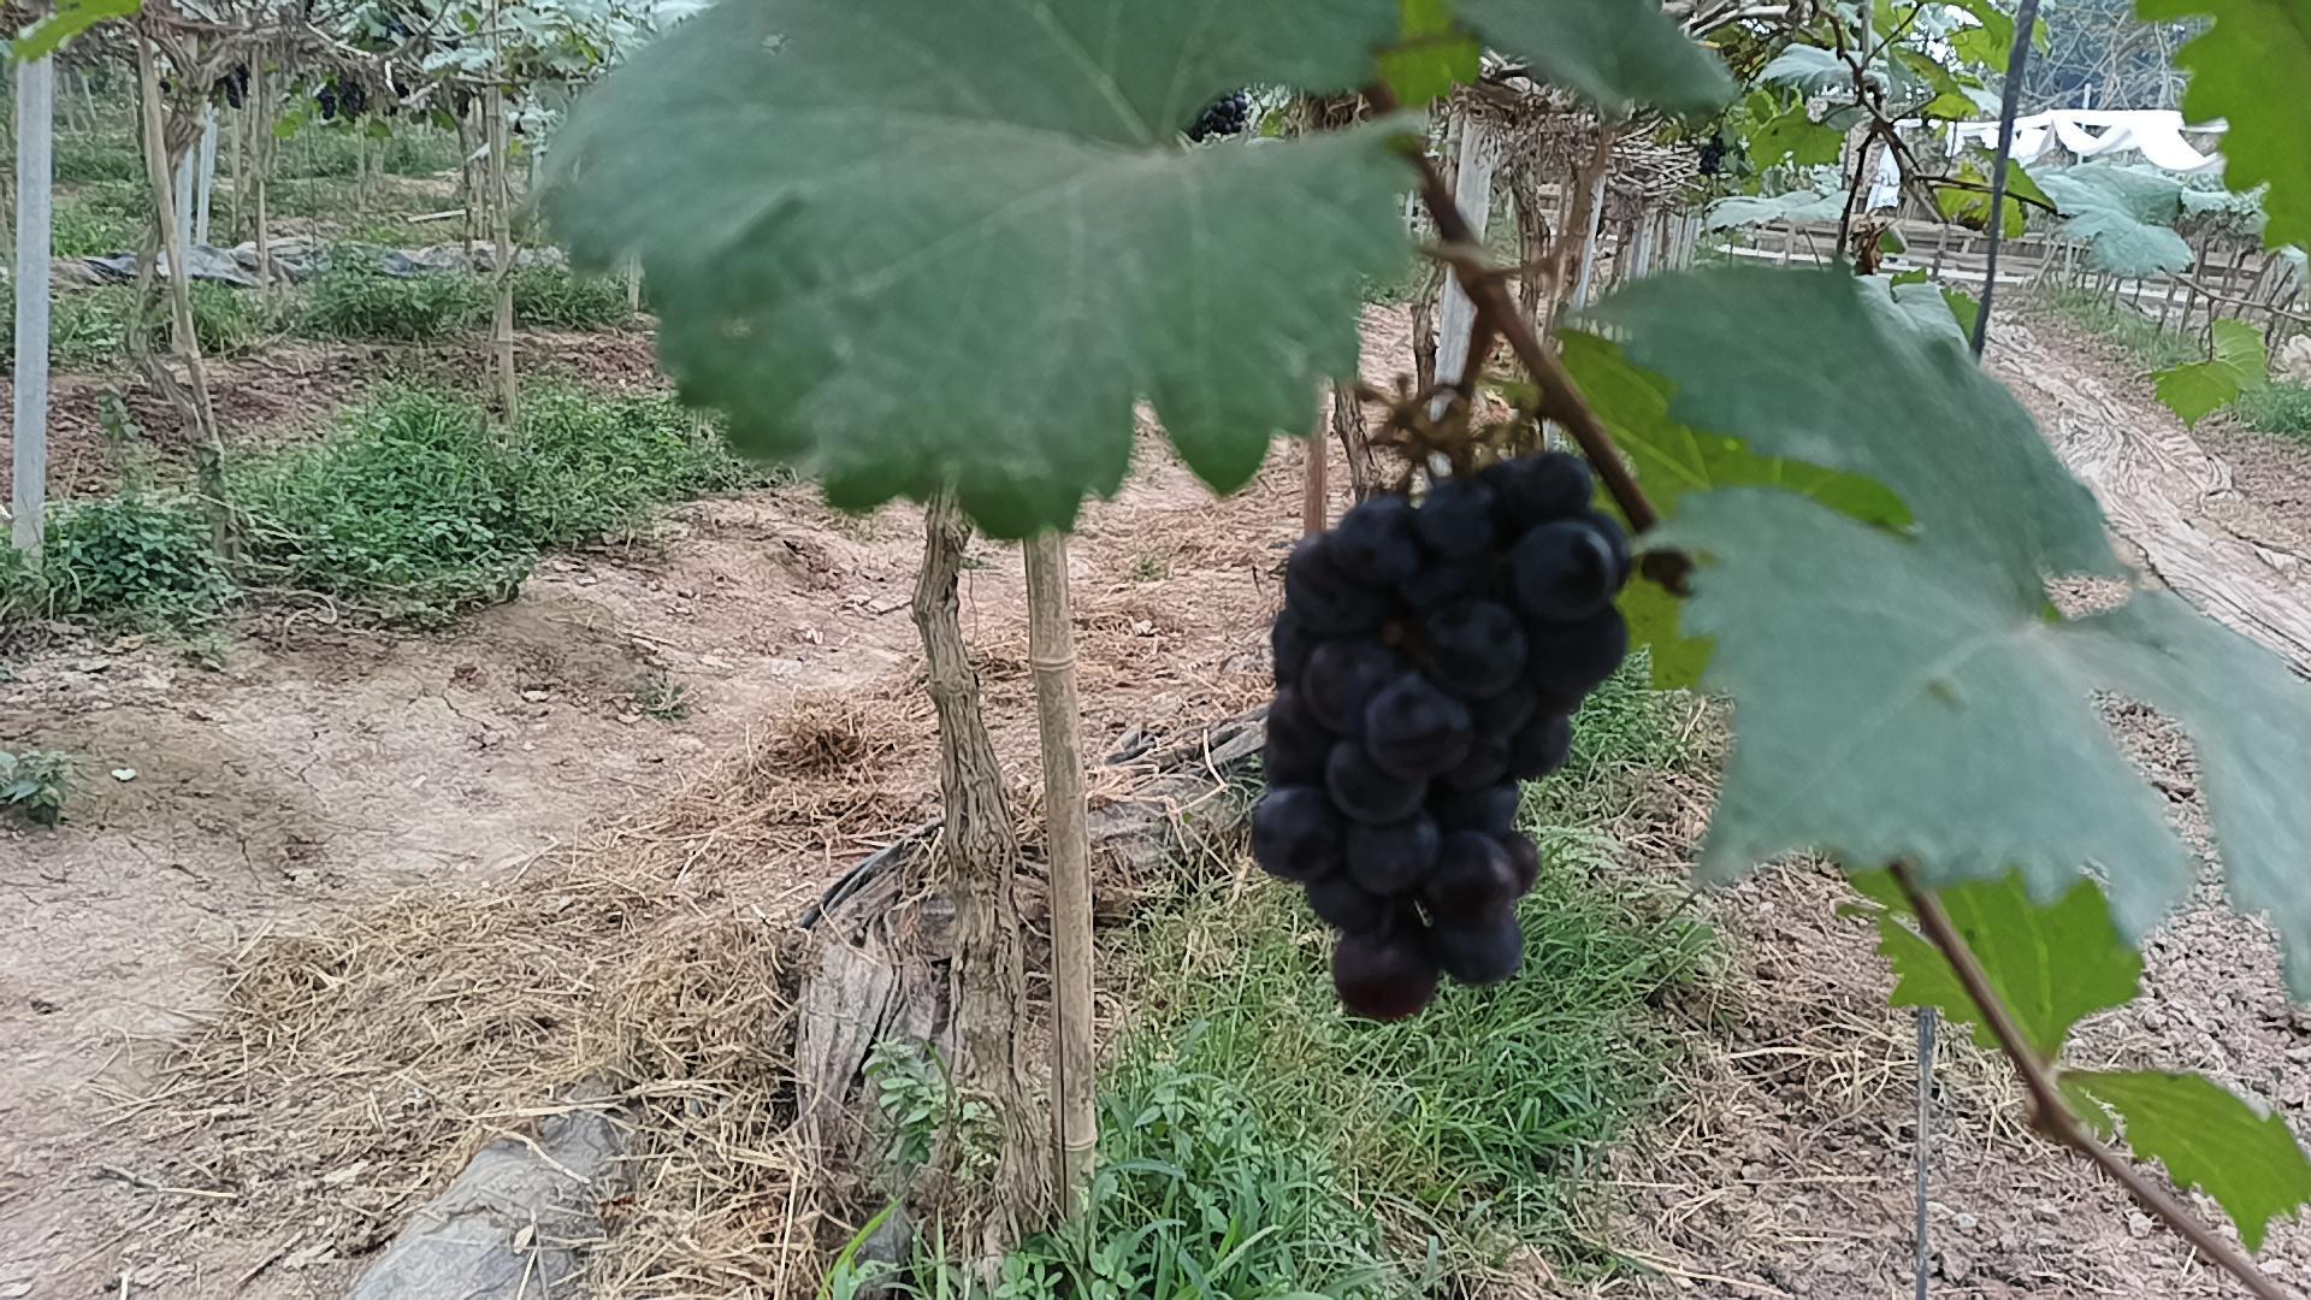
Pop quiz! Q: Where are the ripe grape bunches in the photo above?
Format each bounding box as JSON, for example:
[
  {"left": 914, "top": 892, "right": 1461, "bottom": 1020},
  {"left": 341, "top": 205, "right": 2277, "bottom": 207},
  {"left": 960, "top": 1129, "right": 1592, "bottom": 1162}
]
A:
[
  {"left": 1188, "top": 89, "right": 1245, "bottom": 138},
  {"left": 1251, "top": 453, "right": 1630, "bottom": 1020}
]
